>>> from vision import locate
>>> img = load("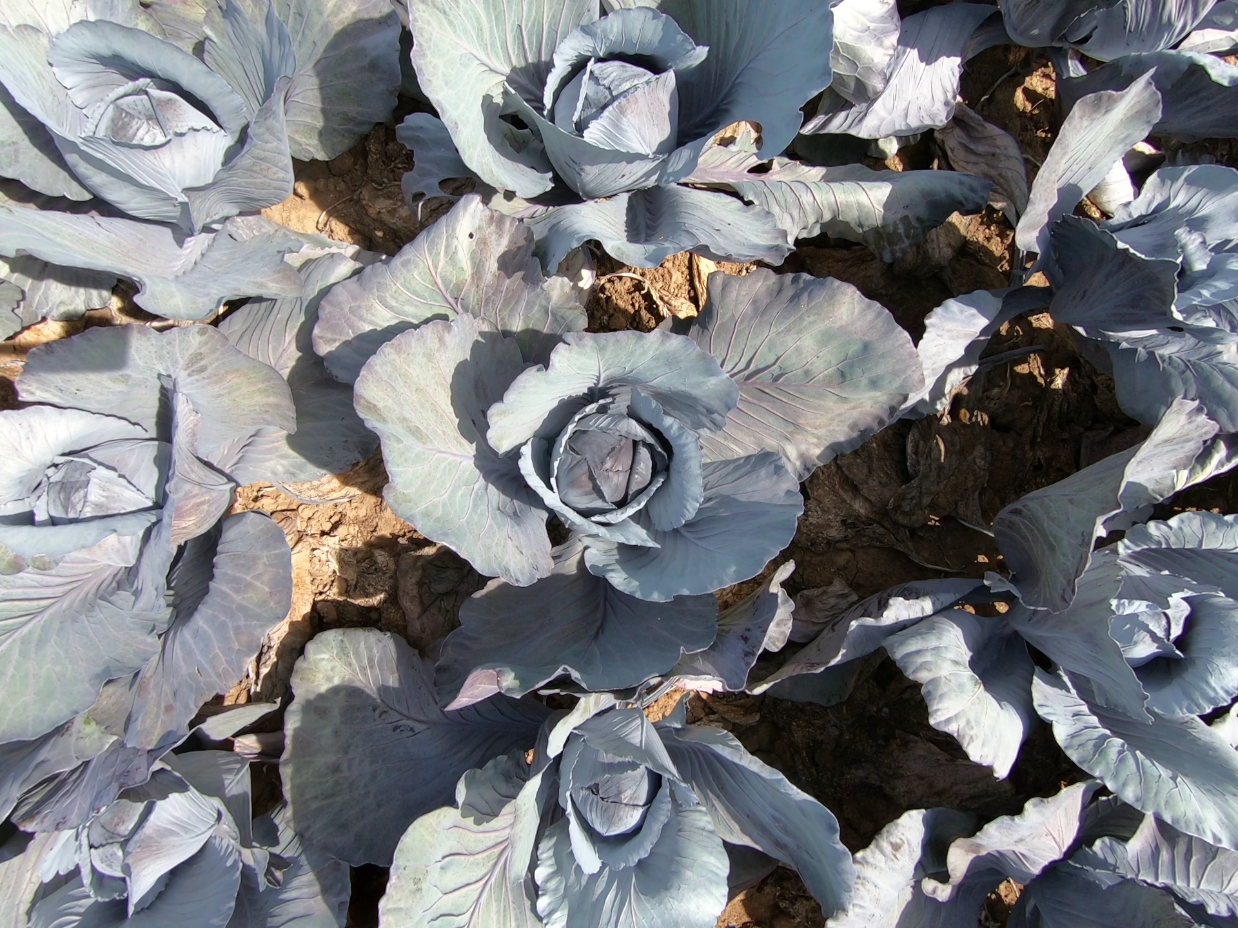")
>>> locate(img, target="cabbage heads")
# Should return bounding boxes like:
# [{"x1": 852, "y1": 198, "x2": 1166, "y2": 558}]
[
  {"x1": 555, "y1": 61, "x2": 673, "y2": 175},
  {"x1": 89, "y1": 91, "x2": 229, "y2": 199},
  {"x1": 1076, "y1": 572, "x2": 1184, "y2": 672},
  {"x1": 77, "y1": 782, "x2": 191, "y2": 879},
  {"x1": 553, "y1": 412, "x2": 656, "y2": 516},
  {"x1": 41, "y1": 439, "x2": 201, "y2": 557},
  {"x1": 567, "y1": 715, "x2": 662, "y2": 835},
  {"x1": 1072, "y1": 229, "x2": 1185, "y2": 340}
]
